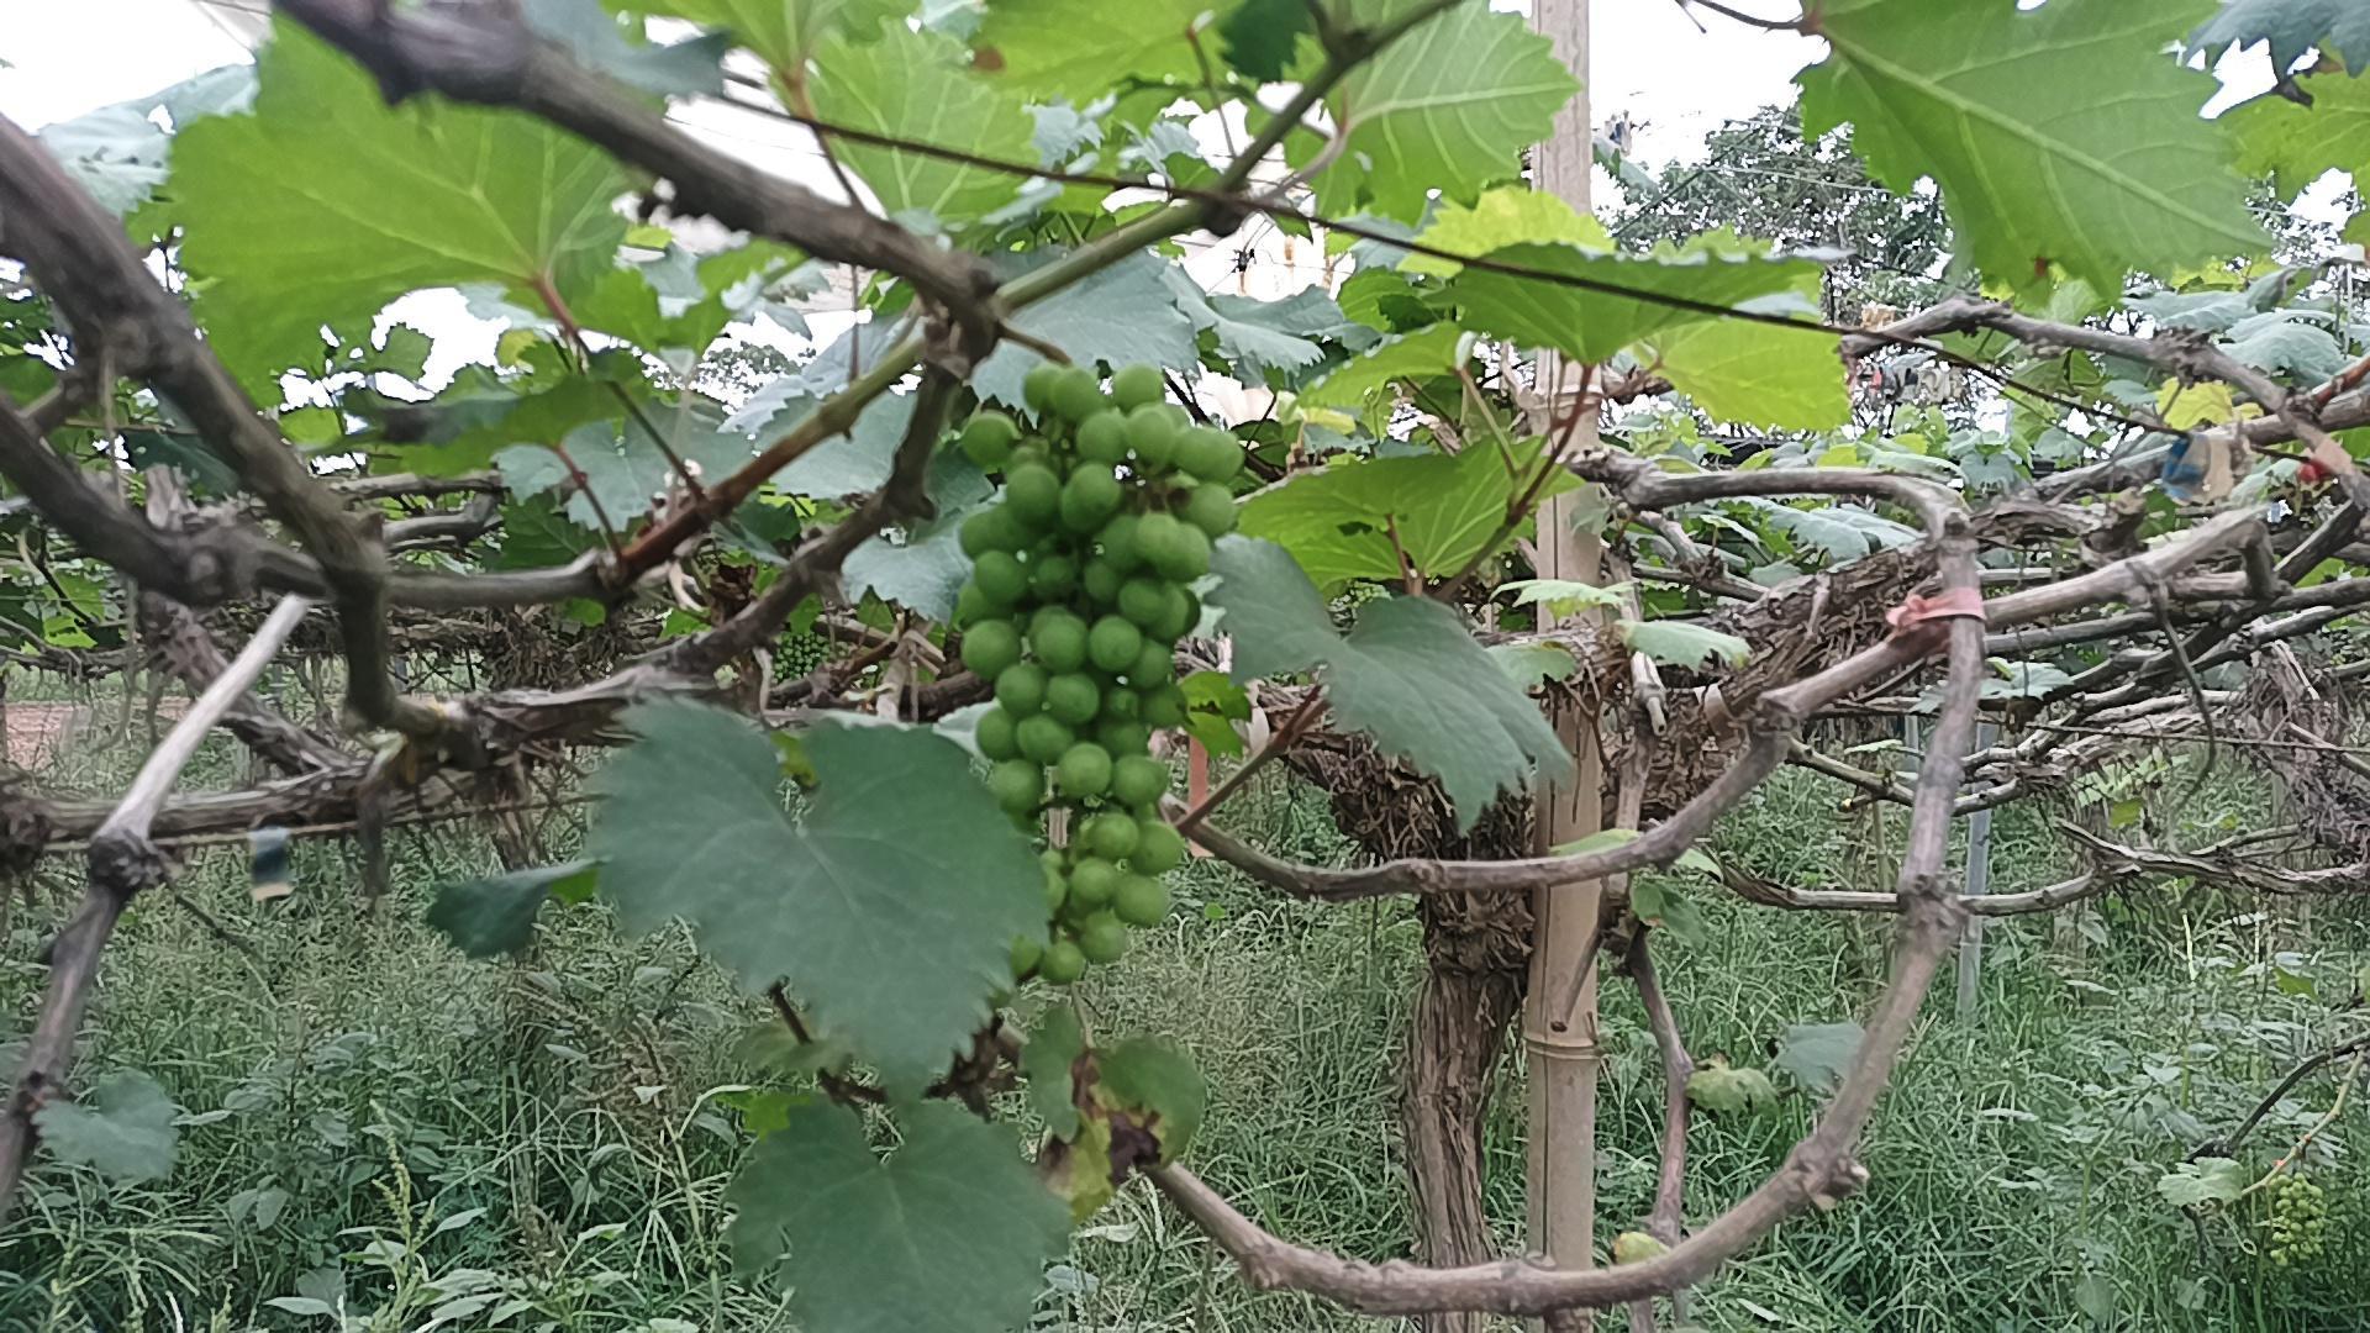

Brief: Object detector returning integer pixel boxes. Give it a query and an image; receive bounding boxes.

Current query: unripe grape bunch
[955,367,1243,984]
